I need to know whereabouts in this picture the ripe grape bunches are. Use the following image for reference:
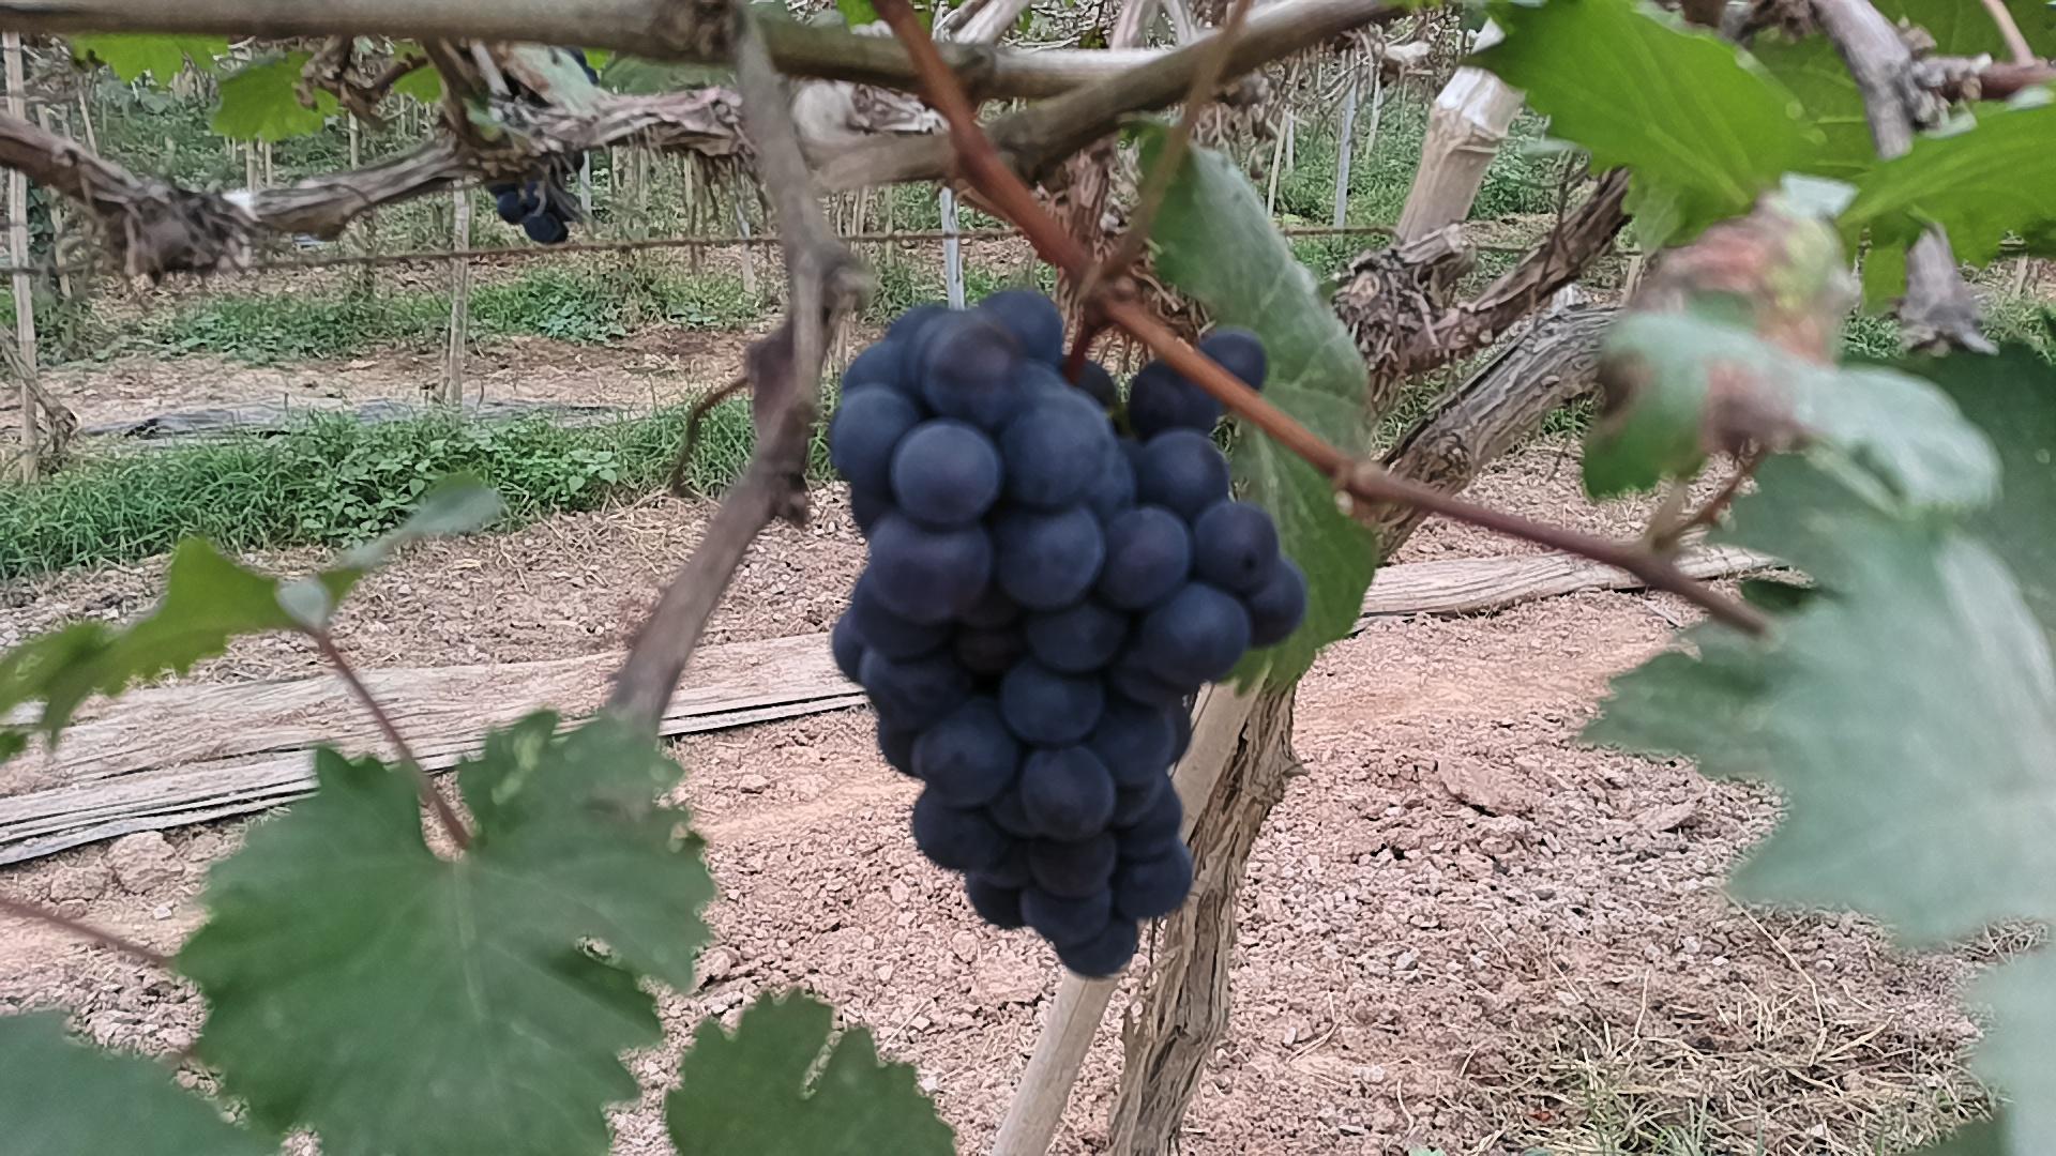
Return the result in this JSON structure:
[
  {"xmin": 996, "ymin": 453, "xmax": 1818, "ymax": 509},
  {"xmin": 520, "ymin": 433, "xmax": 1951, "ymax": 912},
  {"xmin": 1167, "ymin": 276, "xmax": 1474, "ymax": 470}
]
[
  {"xmin": 830, "ymin": 291, "xmax": 1307, "ymax": 978},
  {"xmin": 499, "ymin": 169, "xmax": 580, "ymax": 242}
]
